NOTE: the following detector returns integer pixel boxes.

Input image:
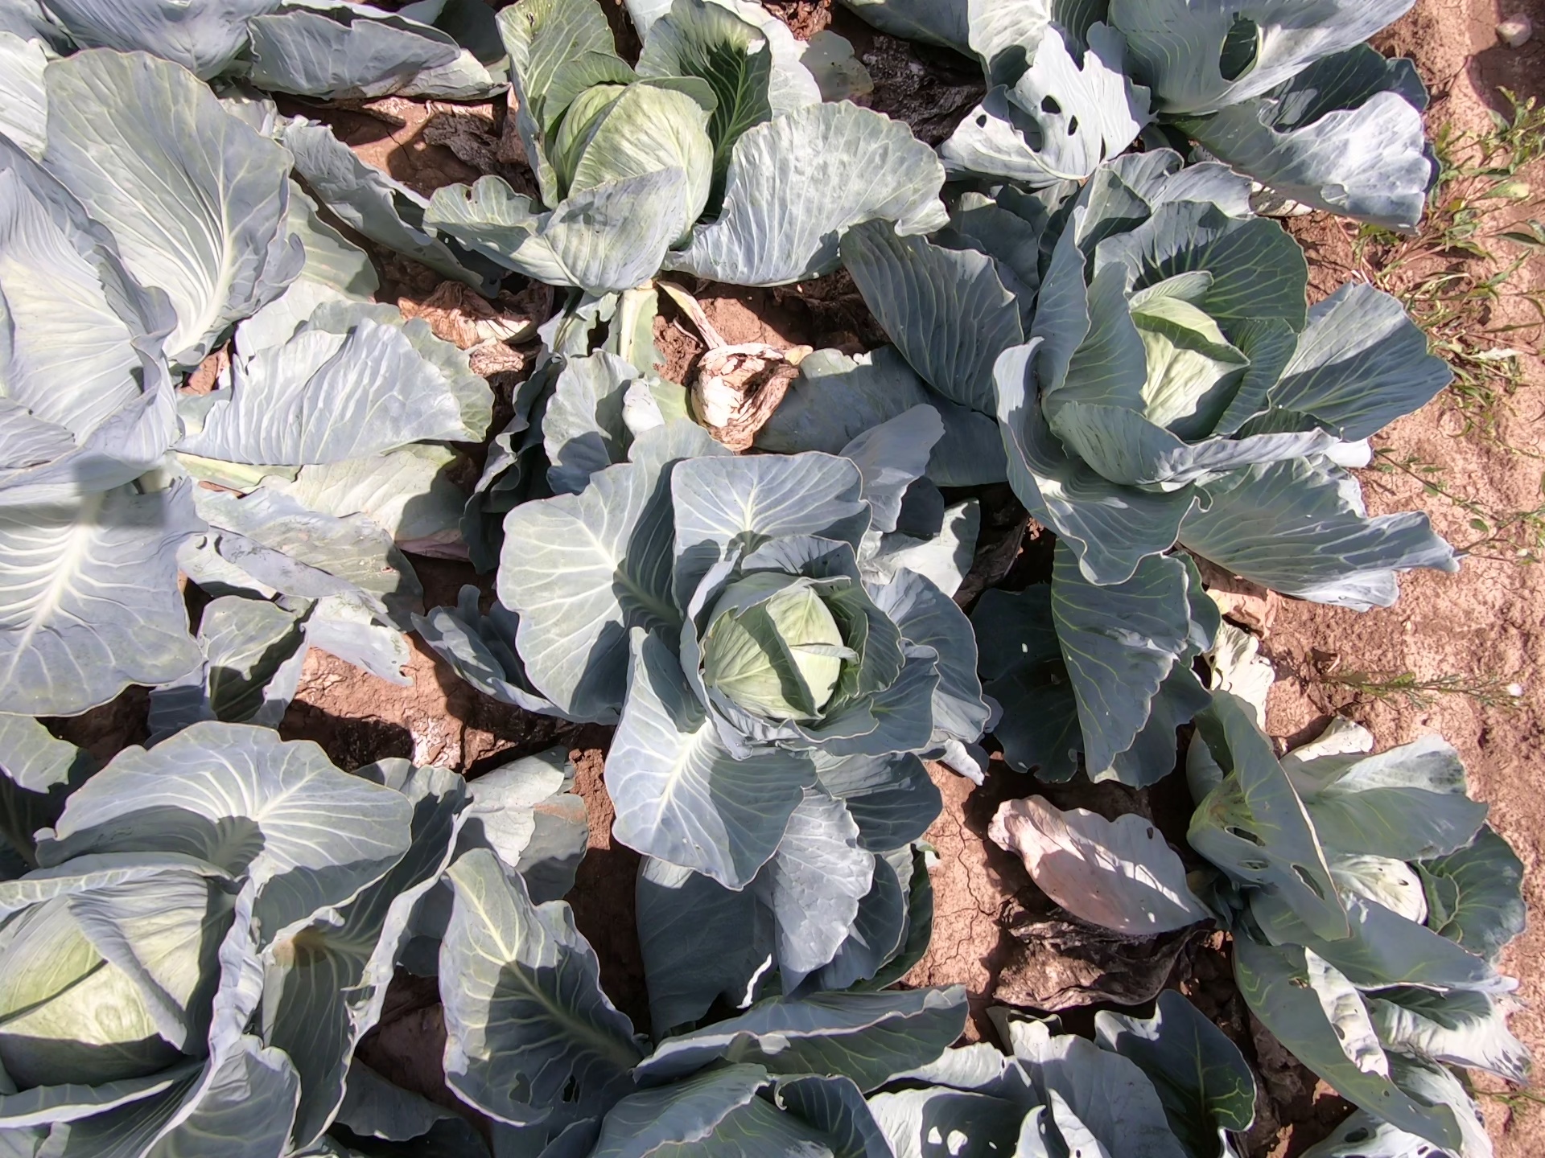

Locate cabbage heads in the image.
[1282,837,1425,975]
[1086,291,1240,452]
[2,851,262,1098]
[549,75,707,244]
[702,575,840,717]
